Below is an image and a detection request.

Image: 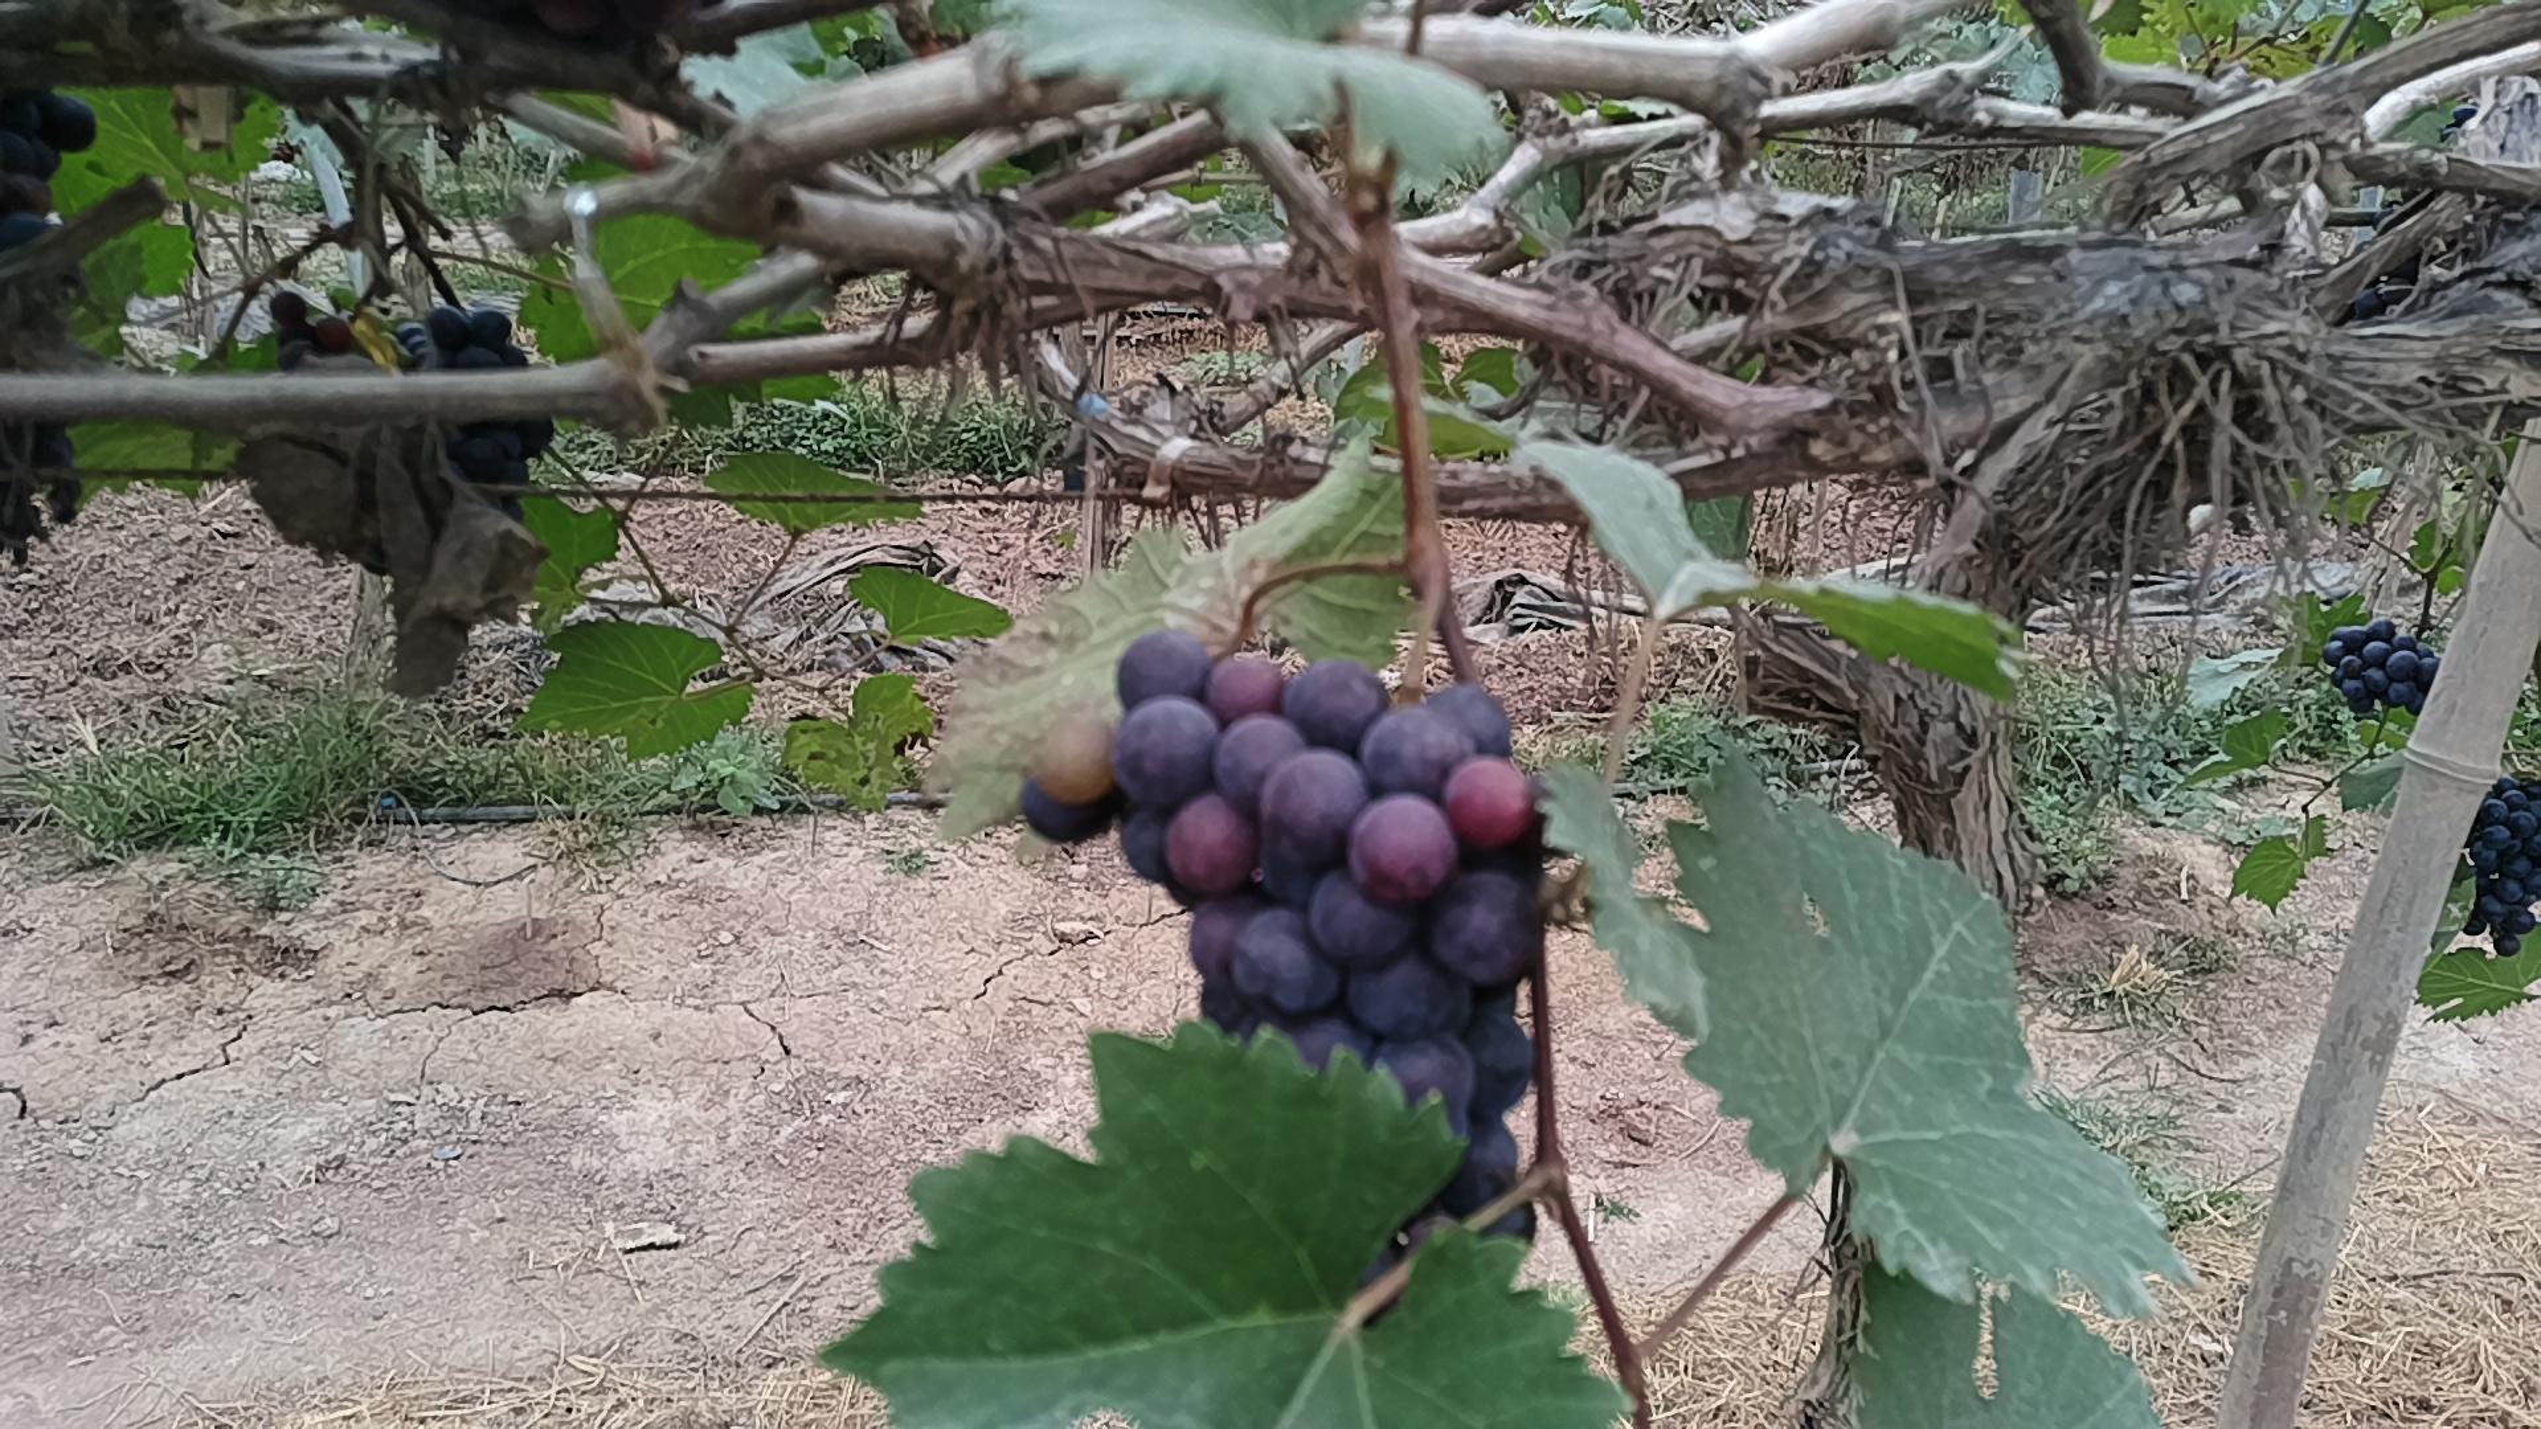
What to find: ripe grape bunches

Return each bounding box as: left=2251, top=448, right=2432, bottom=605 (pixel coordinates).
left=2462, top=775, right=2540, bottom=955
left=2321, top=618, right=2438, bottom=716
left=0, top=89, right=95, bottom=565
left=1020, top=631, right=1542, bottom=1289
left=265, top=288, right=553, bottom=515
